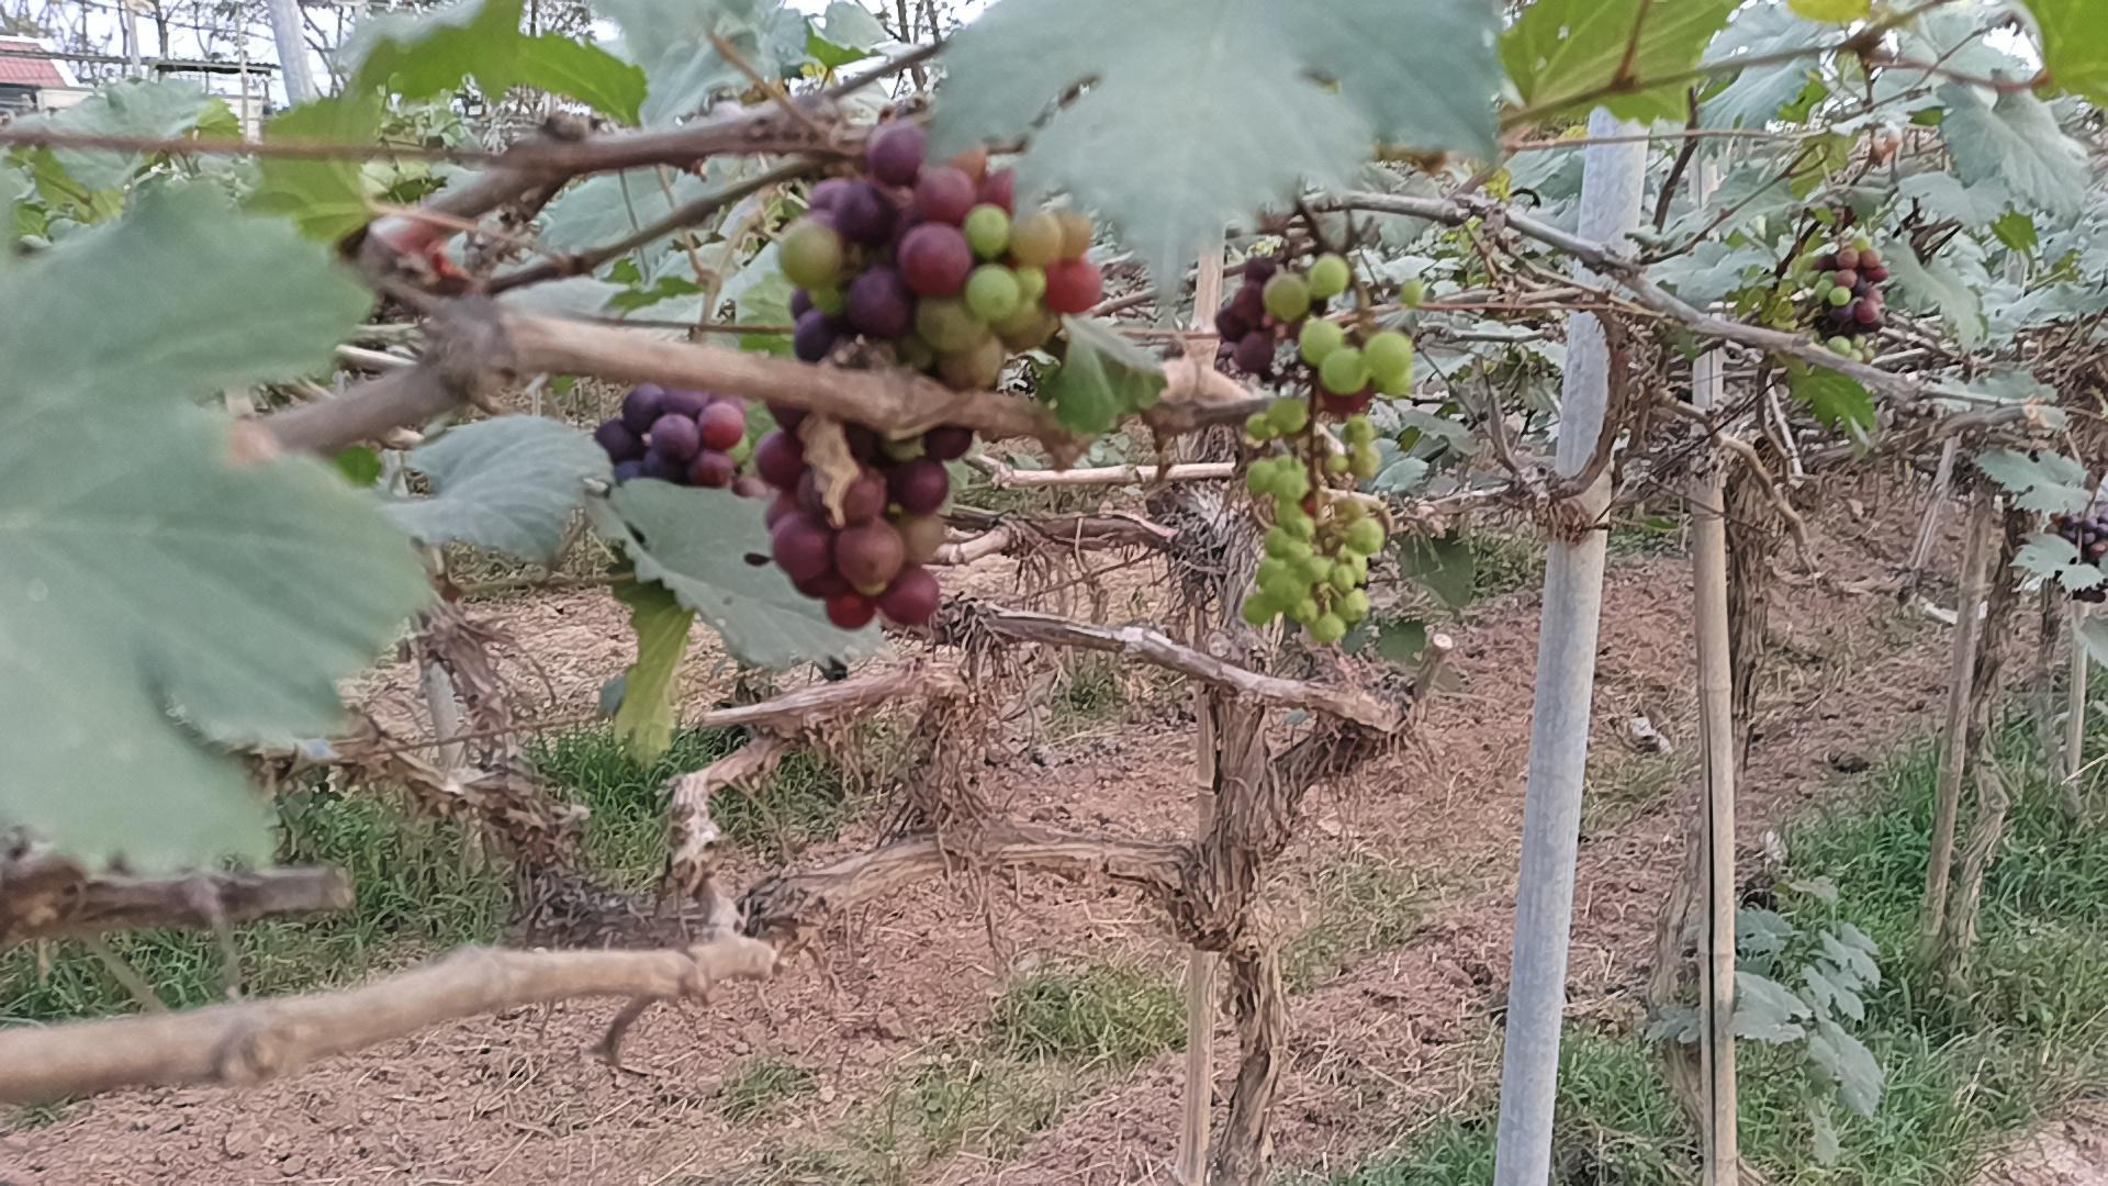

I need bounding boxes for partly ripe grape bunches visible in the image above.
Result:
[755,124,1101,630]
[1795,236,1888,365]
[1212,251,1413,644]
[2042,511,2107,604]
[594,384,770,501]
